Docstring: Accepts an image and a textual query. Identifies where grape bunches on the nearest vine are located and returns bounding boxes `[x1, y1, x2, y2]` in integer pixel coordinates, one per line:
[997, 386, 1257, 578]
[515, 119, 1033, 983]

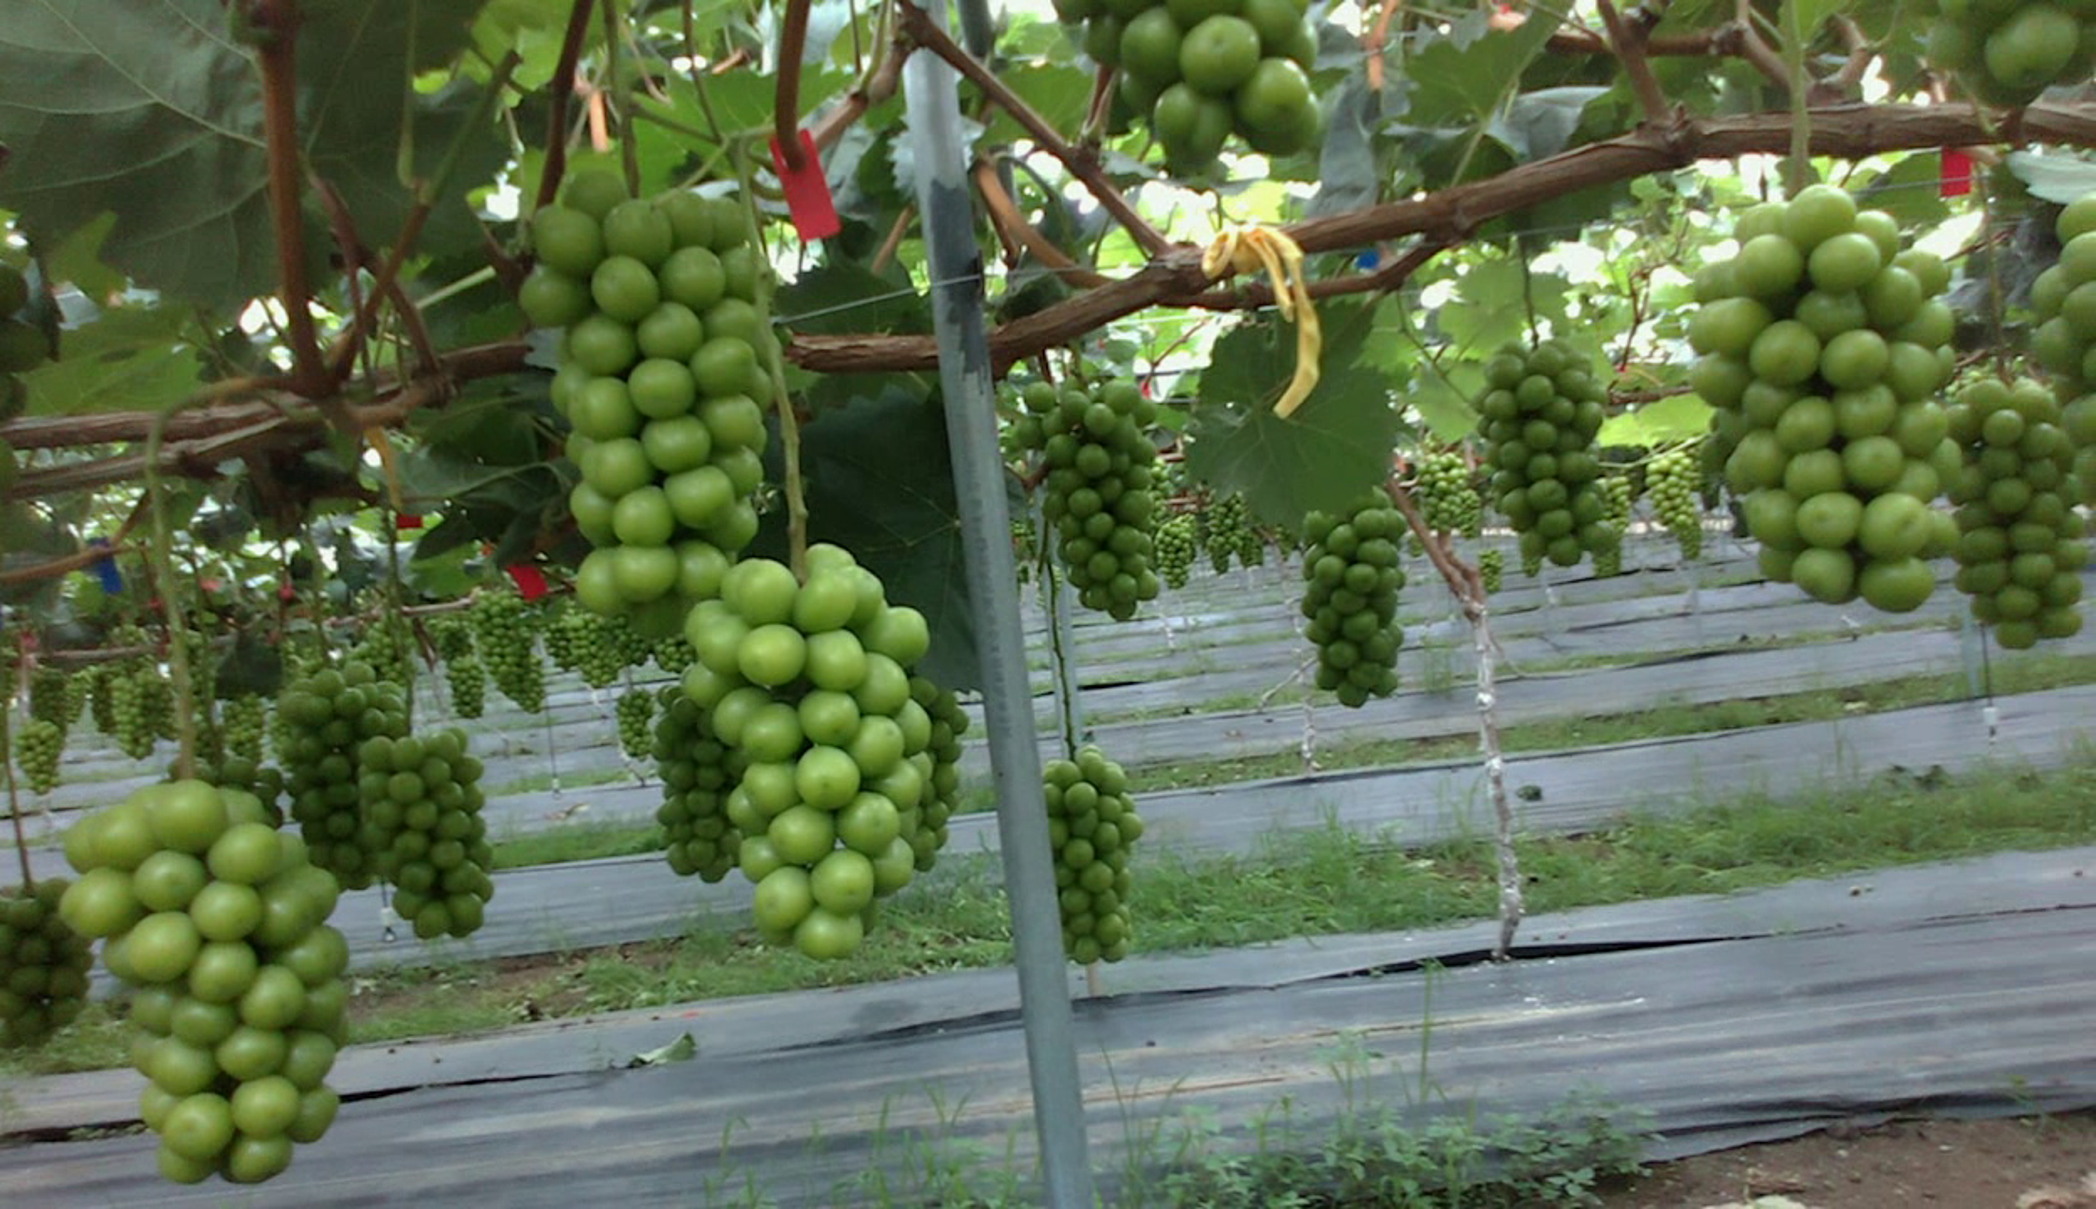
[1050, 2, 1318, 173]
[517, 168, 773, 631]
[62, 781, 349, 1187]
[1685, 186, 1965, 611]
[684, 544, 932, 964]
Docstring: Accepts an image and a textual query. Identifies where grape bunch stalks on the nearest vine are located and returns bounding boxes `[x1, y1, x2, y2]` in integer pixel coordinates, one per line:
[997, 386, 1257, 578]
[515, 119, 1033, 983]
[1779, 0, 1807, 195]
[734, 124, 806, 581]
[144, 376, 245, 776]
[603, 2, 642, 196]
